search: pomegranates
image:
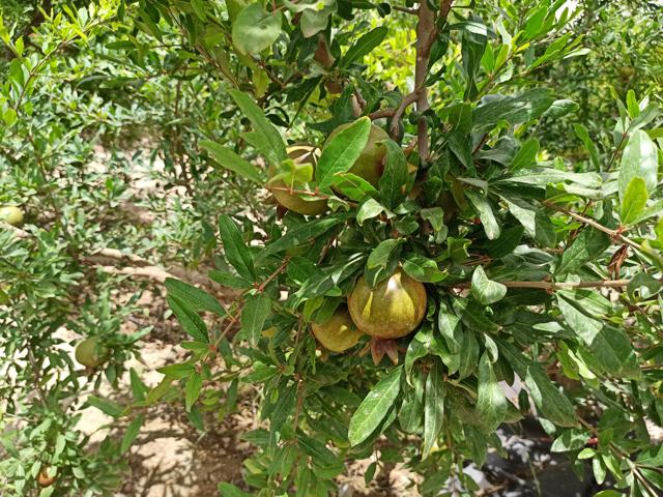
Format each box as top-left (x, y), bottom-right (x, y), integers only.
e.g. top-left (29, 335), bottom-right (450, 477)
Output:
top-left (311, 313), bottom-right (363, 351)
top-left (260, 145), bottom-right (334, 222)
top-left (347, 267), bottom-right (427, 367)
top-left (75, 337), bottom-right (111, 377)
top-left (322, 122), bottom-right (391, 189)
